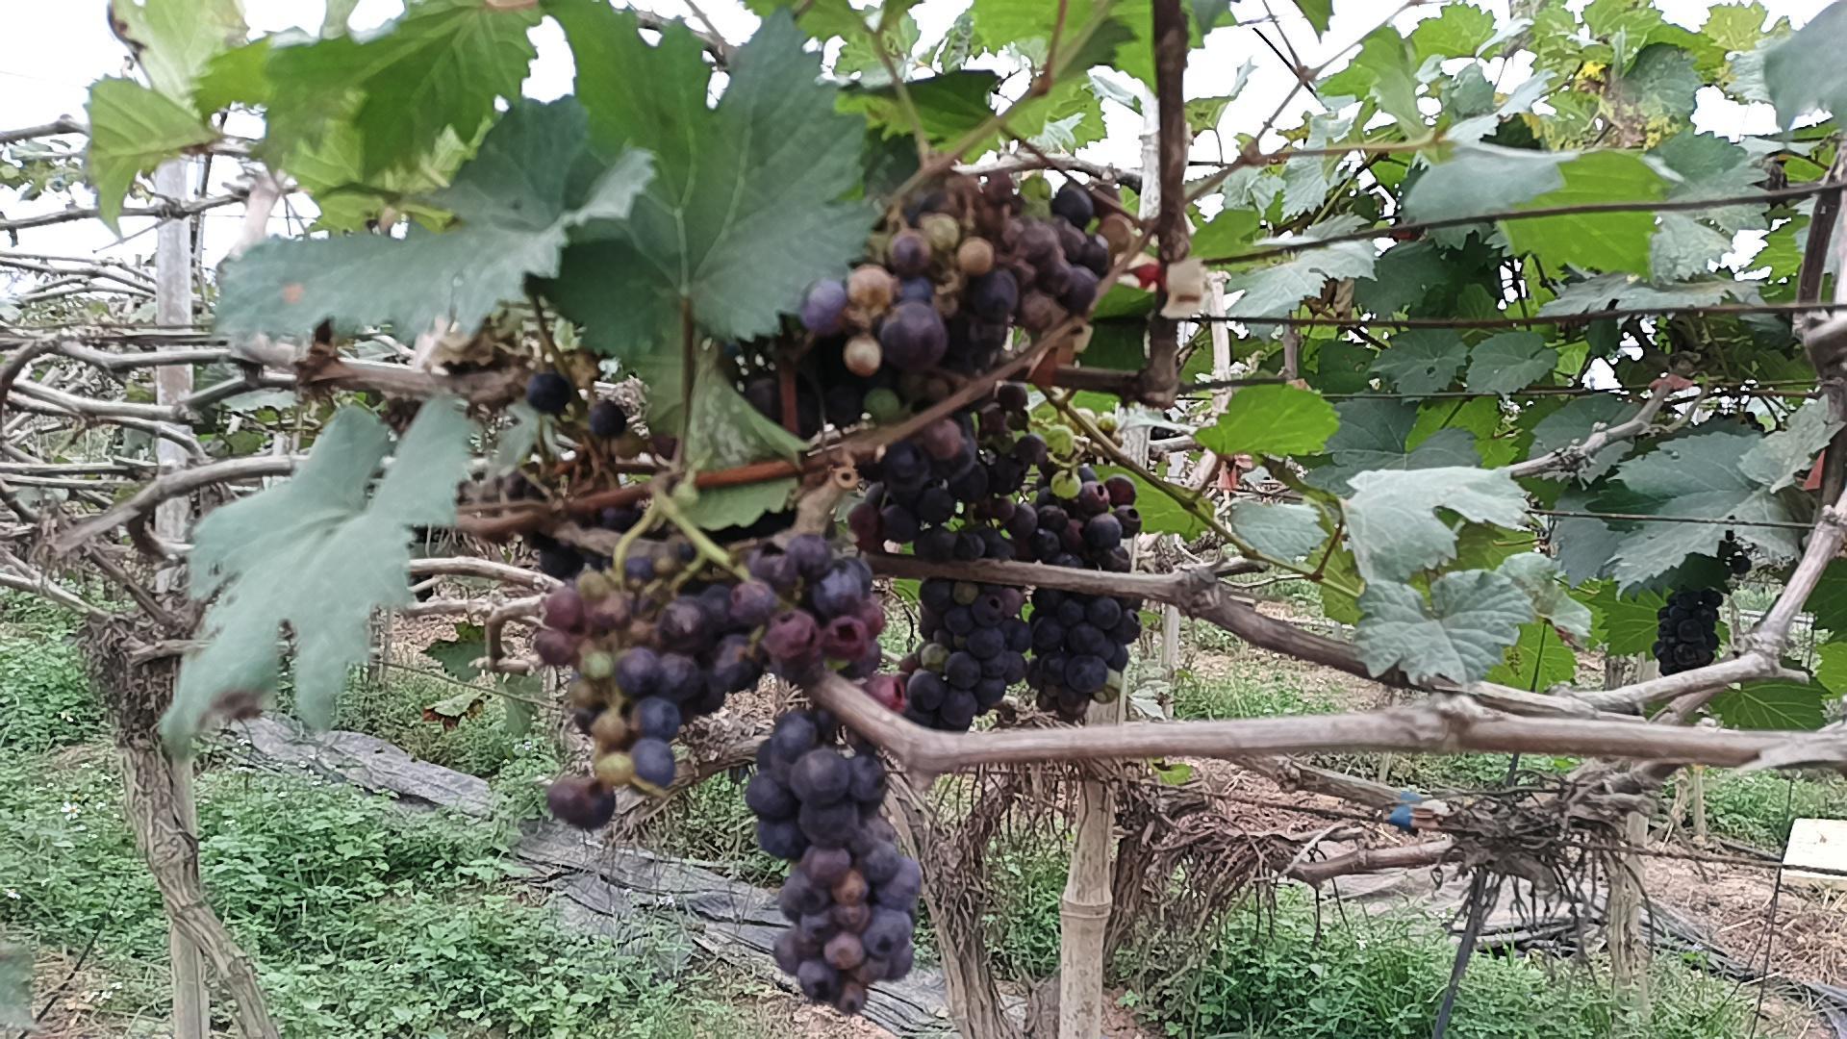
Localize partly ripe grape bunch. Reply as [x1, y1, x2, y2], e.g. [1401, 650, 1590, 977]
[530, 530, 887, 831]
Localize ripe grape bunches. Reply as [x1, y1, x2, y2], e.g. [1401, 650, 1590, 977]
[1026, 461, 1144, 722]
[893, 495, 1039, 733]
[1652, 583, 1725, 676]
[846, 369, 1049, 556]
[746, 673, 923, 1013]
[745, 167, 1135, 442]
[475, 368, 678, 581]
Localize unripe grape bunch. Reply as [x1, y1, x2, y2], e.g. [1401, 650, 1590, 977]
[1039, 408, 1124, 498]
